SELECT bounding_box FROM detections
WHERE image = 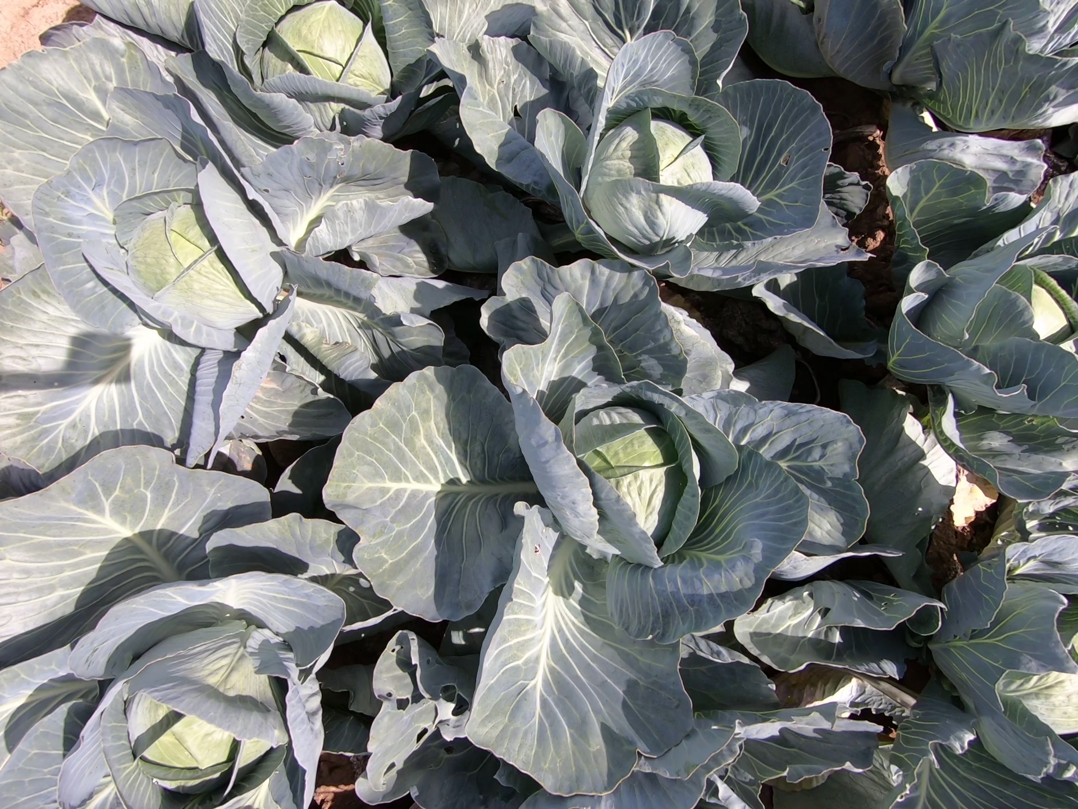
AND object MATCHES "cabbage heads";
[932,269,1074,404]
[561,403,701,550]
[963,589,1076,738]
[122,627,286,795]
[123,199,278,335]
[259,1,391,142]
[583,115,714,259]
